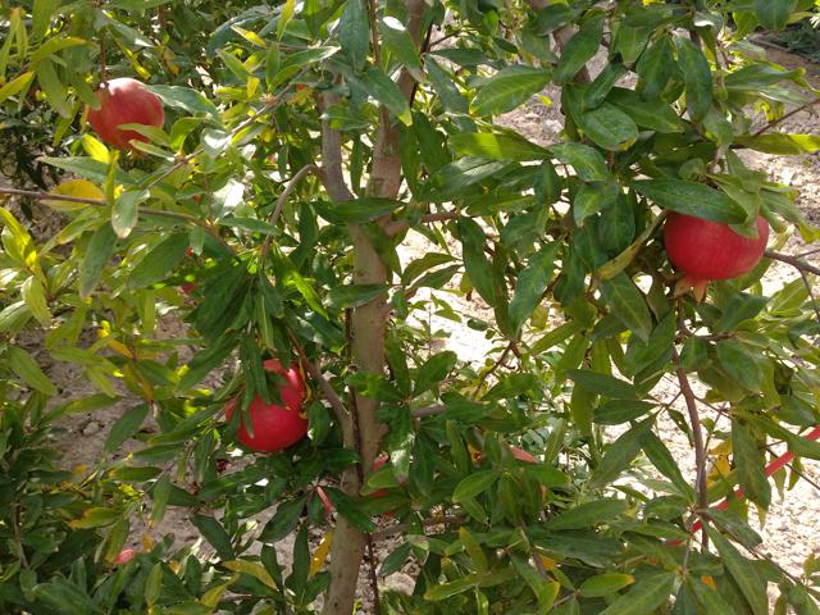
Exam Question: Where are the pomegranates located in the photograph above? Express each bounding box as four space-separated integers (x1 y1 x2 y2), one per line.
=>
224 357 309 452
662 210 769 304
86 78 165 150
